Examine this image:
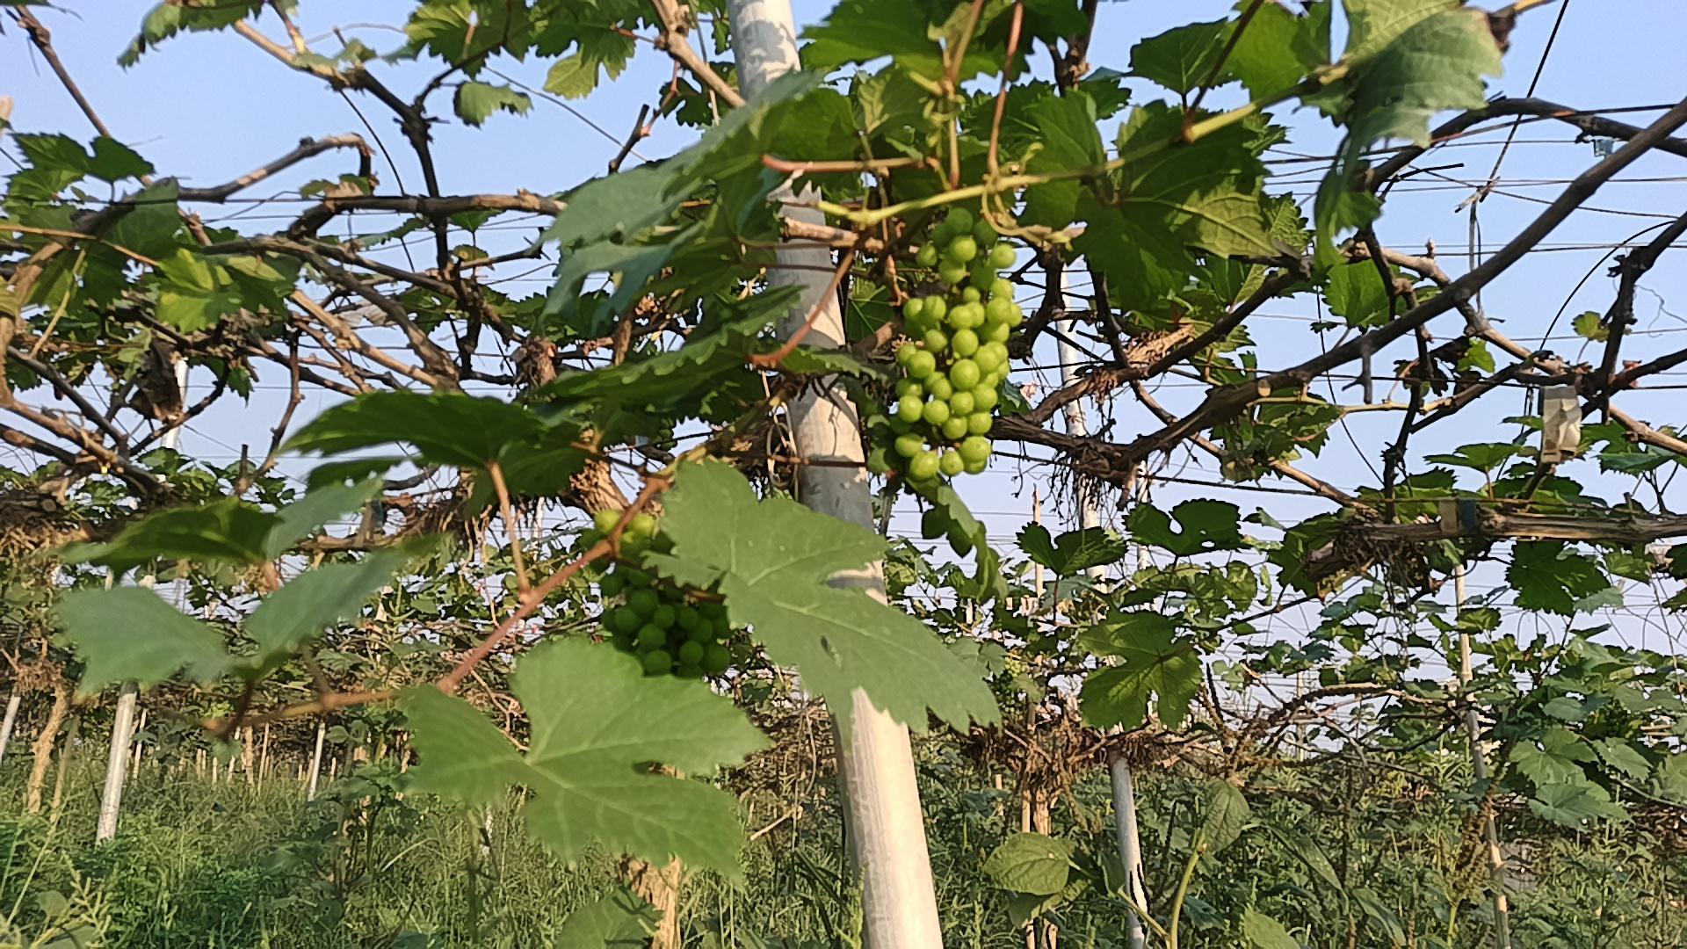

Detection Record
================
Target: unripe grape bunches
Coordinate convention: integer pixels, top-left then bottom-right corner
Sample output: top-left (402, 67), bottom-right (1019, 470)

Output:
top-left (894, 209), bottom-right (1022, 488)
top-left (580, 510), bottom-right (731, 677)
top-left (991, 654), bottom-right (1030, 717)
